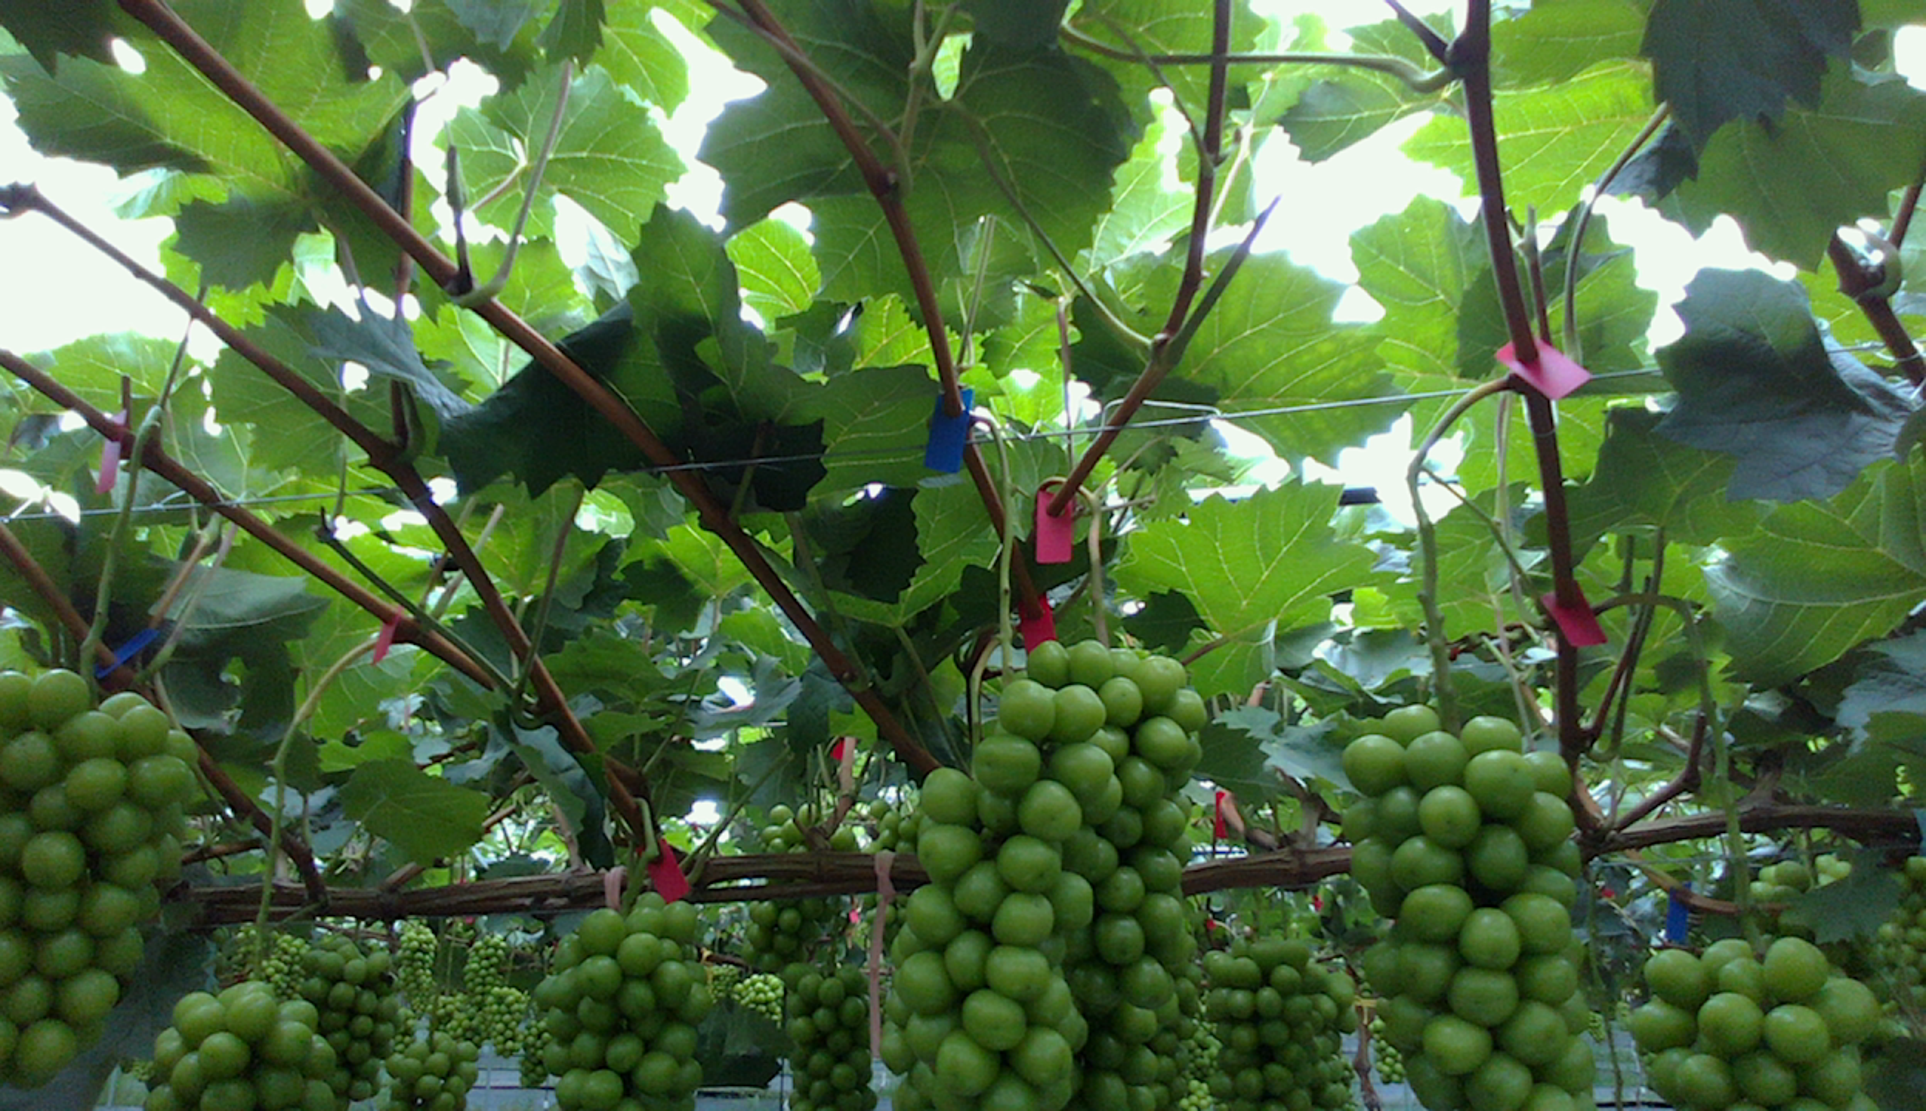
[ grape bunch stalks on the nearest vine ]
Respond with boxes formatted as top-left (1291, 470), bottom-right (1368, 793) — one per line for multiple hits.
top-left (1077, 485), bottom-right (1111, 648)
top-left (619, 798), bottom-right (659, 920)
top-left (966, 636), bottom-right (1000, 779)
top-left (972, 410), bottom-right (1014, 688)
top-left (252, 637), bottom-right (377, 981)
top-left (80, 407), bottom-right (162, 713)
top-left (1591, 593), bottom-right (1765, 963)
top-left (1404, 372), bottom-right (1512, 739)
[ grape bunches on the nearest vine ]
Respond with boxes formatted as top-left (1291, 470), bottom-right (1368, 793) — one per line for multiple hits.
top-left (140, 981), bottom-right (336, 1109)
top-left (881, 679), bottom-right (1122, 1109)
top-left (0, 668), bottom-right (201, 1091)
top-left (534, 890), bottom-right (713, 1109)
top-left (1015, 640), bottom-right (1207, 1020)
top-left (1063, 995), bottom-right (1159, 1109)
top-left (1631, 937), bottom-right (1881, 1109)
top-left (1338, 705), bottom-right (1599, 1109)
